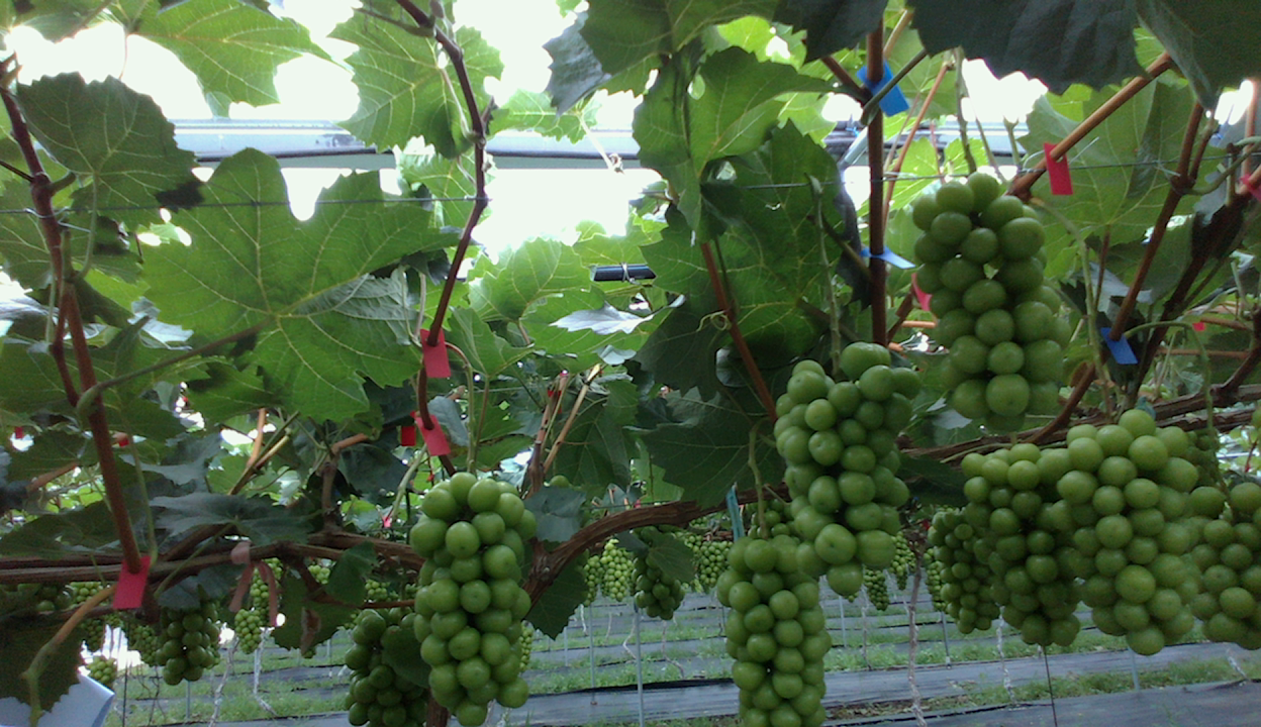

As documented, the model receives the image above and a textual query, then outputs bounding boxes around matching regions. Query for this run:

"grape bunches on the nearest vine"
[409,473,538,726]
[961,443,1086,647]
[911,173,1071,431]
[1176,482,1259,650]
[716,534,833,726]
[773,342,920,597]
[1049,410,1202,656]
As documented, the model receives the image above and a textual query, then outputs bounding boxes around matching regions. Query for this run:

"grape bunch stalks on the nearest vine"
[955,47,976,177]
[1029,196,1113,425]
[1124,320,1241,522]
[1009,432,1017,447]
[446,341,476,474]
[748,415,772,540]
[805,172,849,382]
